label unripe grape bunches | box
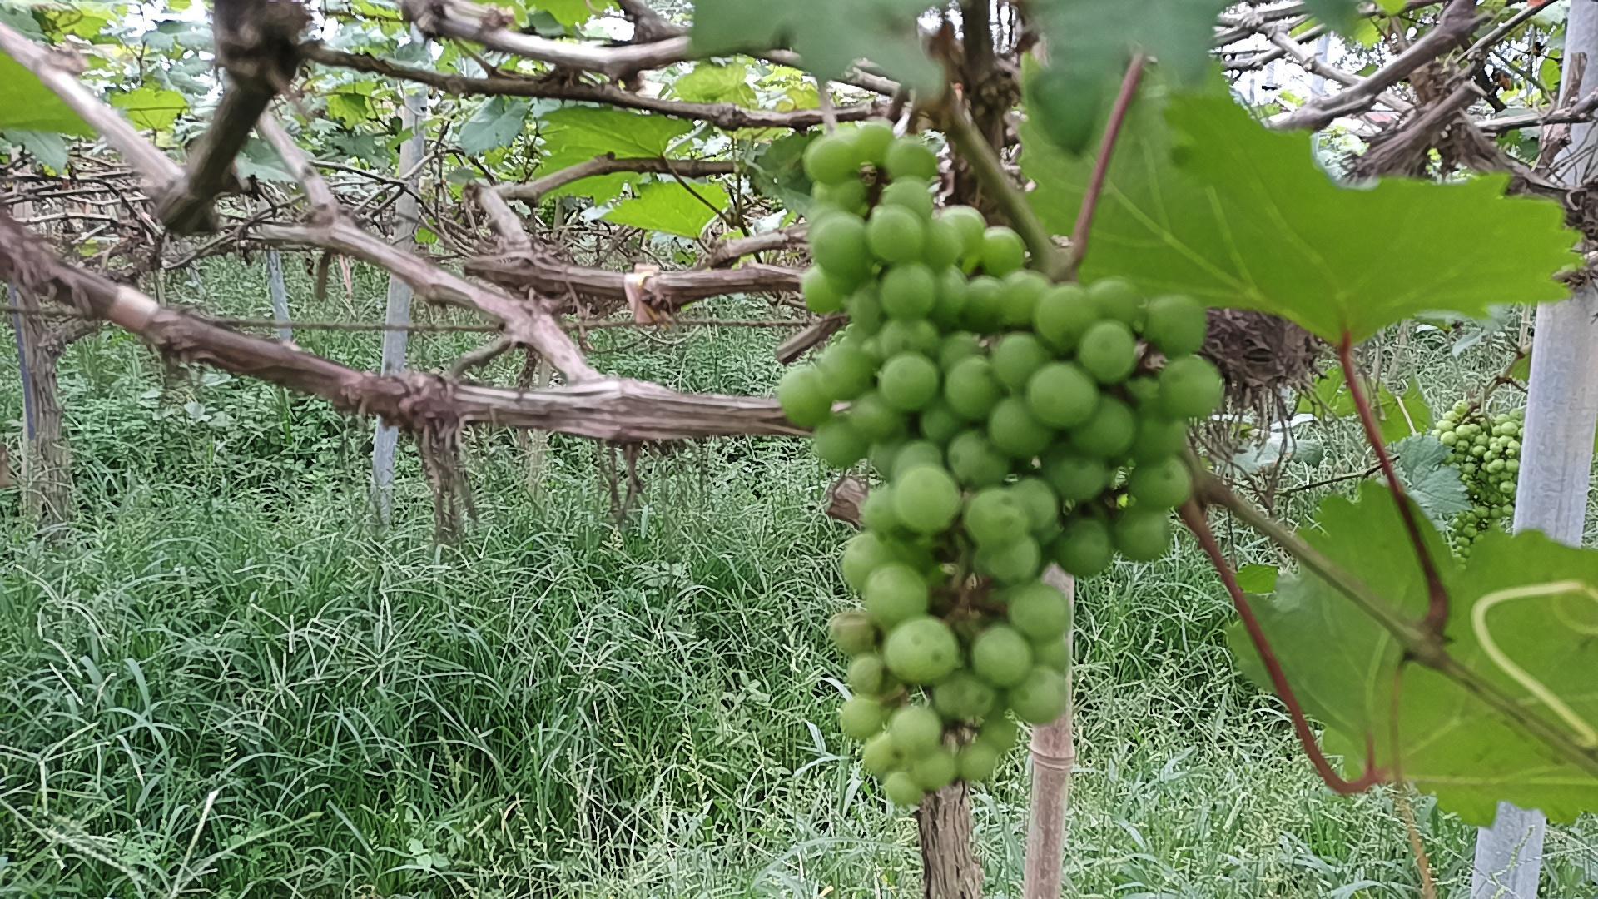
[1427,400,1524,552]
[777,120,1219,805]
